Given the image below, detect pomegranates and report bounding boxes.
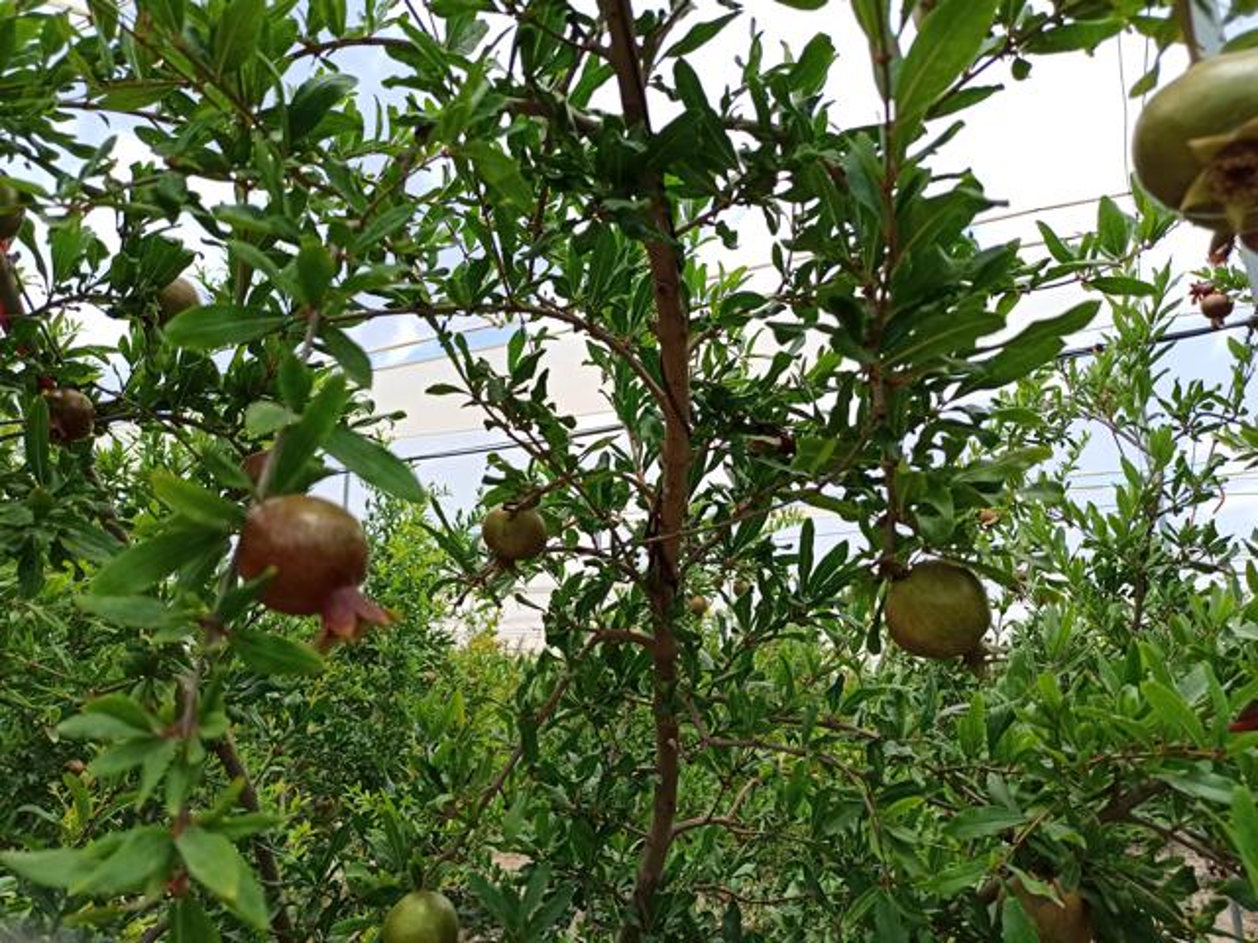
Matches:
[41,387,98,442]
[240,452,269,487]
[381,890,458,943]
[1130,47,1258,265]
[1187,279,1215,306]
[482,505,548,570]
[1201,291,1234,330]
[885,562,1008,680]
[1004,876,1091,943]
[155,279,199,318]
[236,495,401,654]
